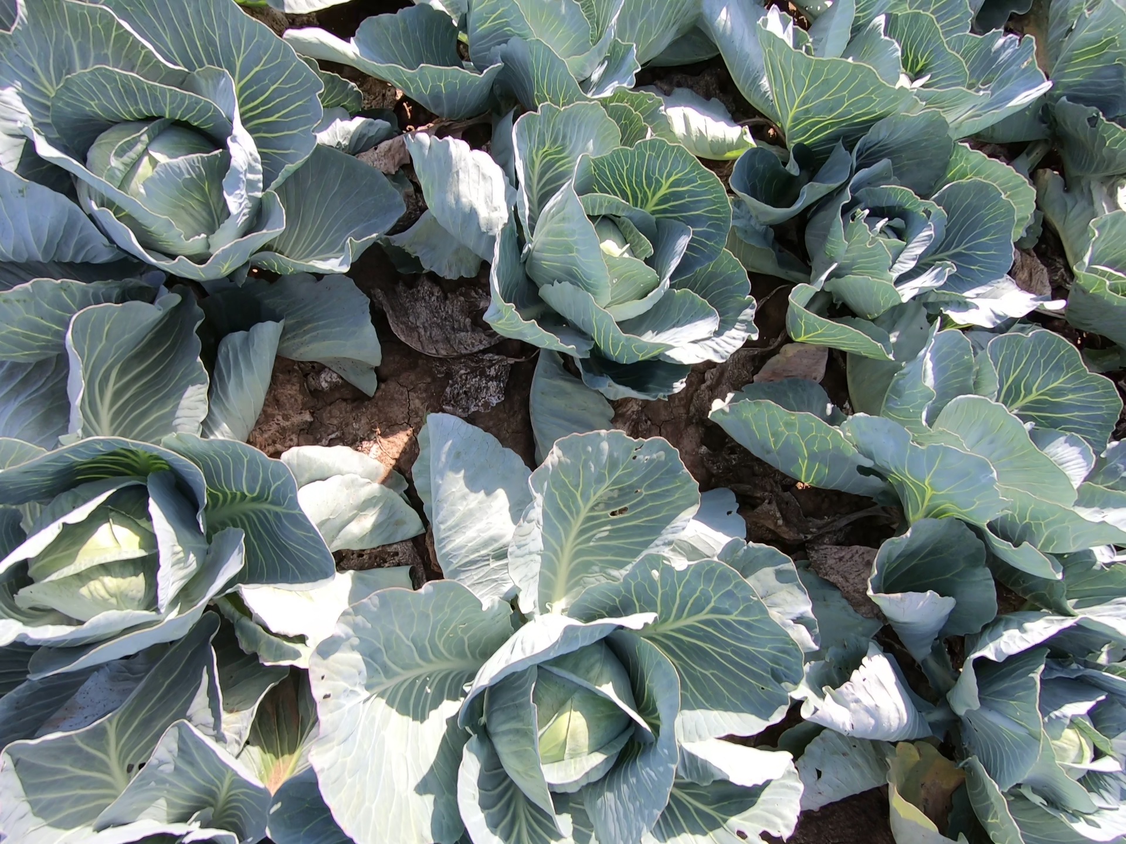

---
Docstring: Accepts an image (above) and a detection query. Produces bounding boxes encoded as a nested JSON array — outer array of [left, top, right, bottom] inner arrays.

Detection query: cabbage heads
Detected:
[[493, 626, 635, 791], [1004, 688, 1096, 781], [841, 219, 897, 272], [557, 214, 639, 304], [30, 481, 197, 621], [88, 115, 235, 253]]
